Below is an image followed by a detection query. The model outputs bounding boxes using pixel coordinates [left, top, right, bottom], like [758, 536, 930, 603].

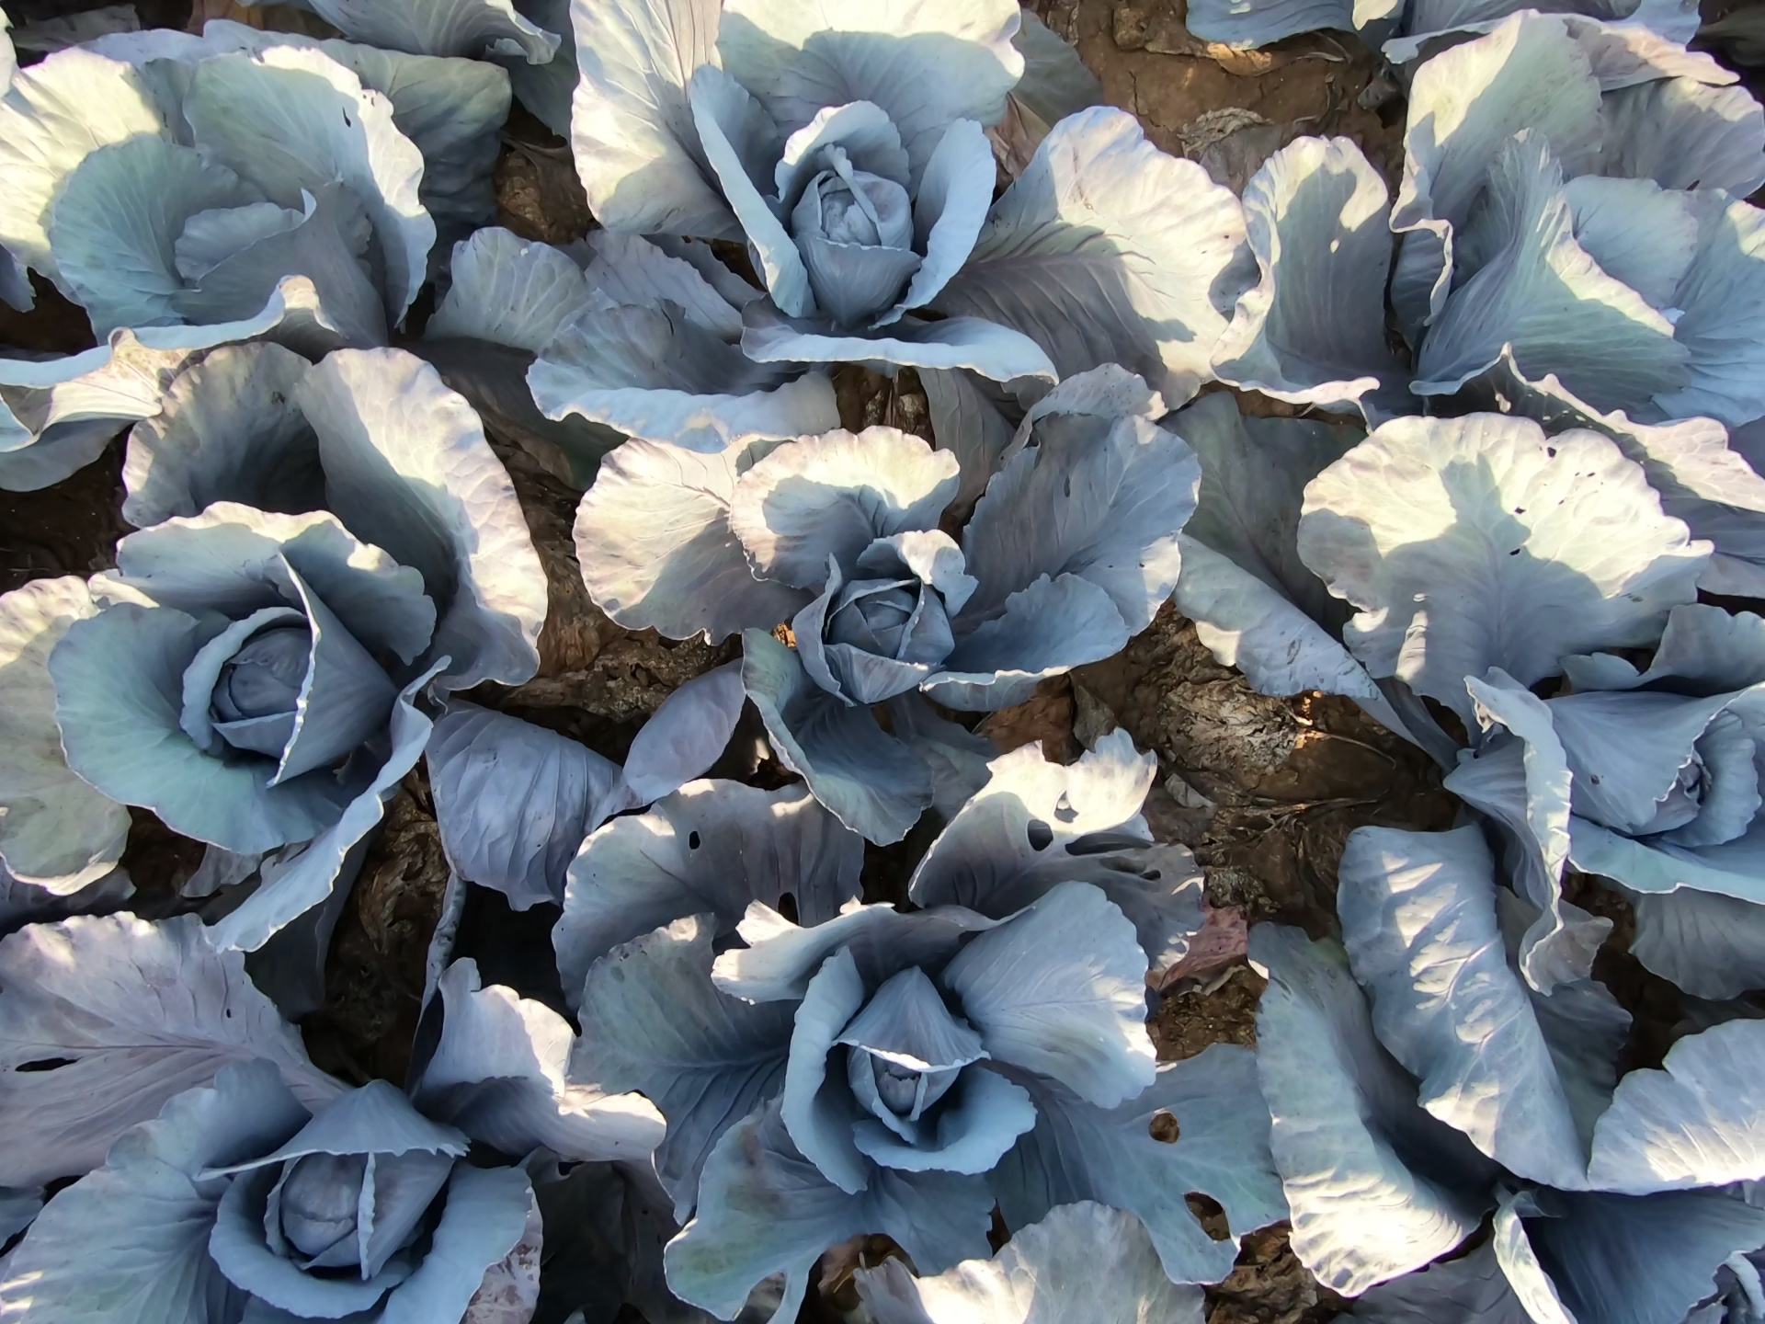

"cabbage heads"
[217, 625, 350, 749]
[860, 1020, 962, 1110]
[278, 1129, 407, 1257]
[1606, 1225, 1756, 1319]
[1565, 713, 1702, 829]
[803, 176, 907, 291]
[834, 586, 938, 680]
